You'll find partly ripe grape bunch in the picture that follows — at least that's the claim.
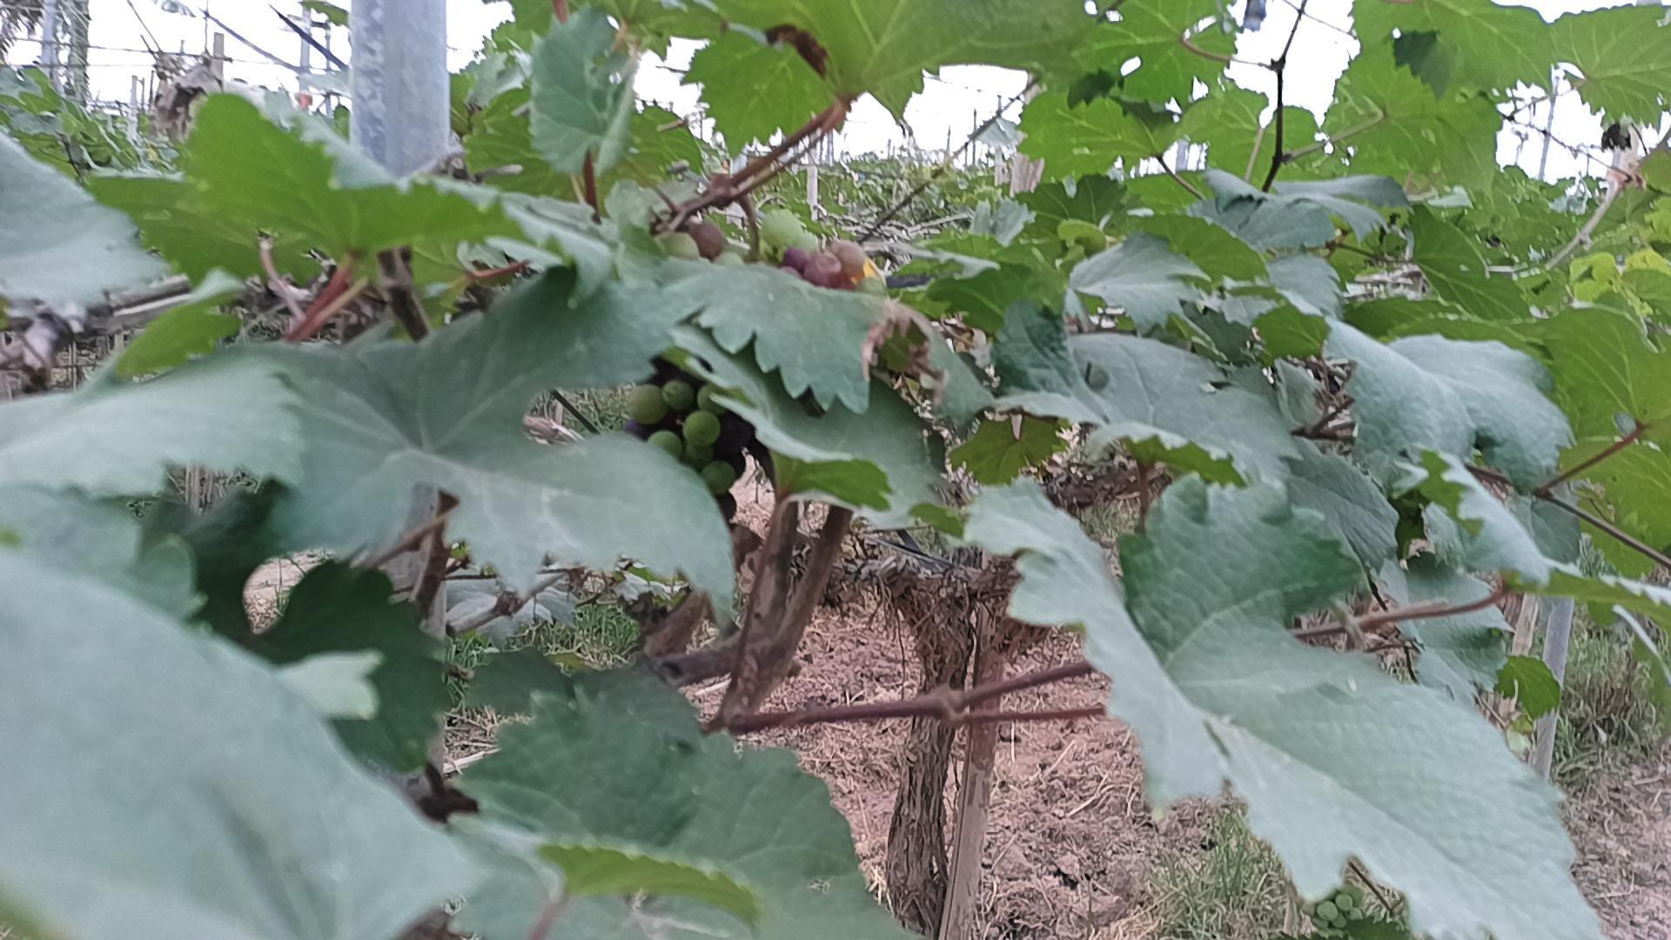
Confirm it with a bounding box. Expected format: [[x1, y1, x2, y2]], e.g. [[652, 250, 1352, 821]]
[[622, 209, 892, 520]]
